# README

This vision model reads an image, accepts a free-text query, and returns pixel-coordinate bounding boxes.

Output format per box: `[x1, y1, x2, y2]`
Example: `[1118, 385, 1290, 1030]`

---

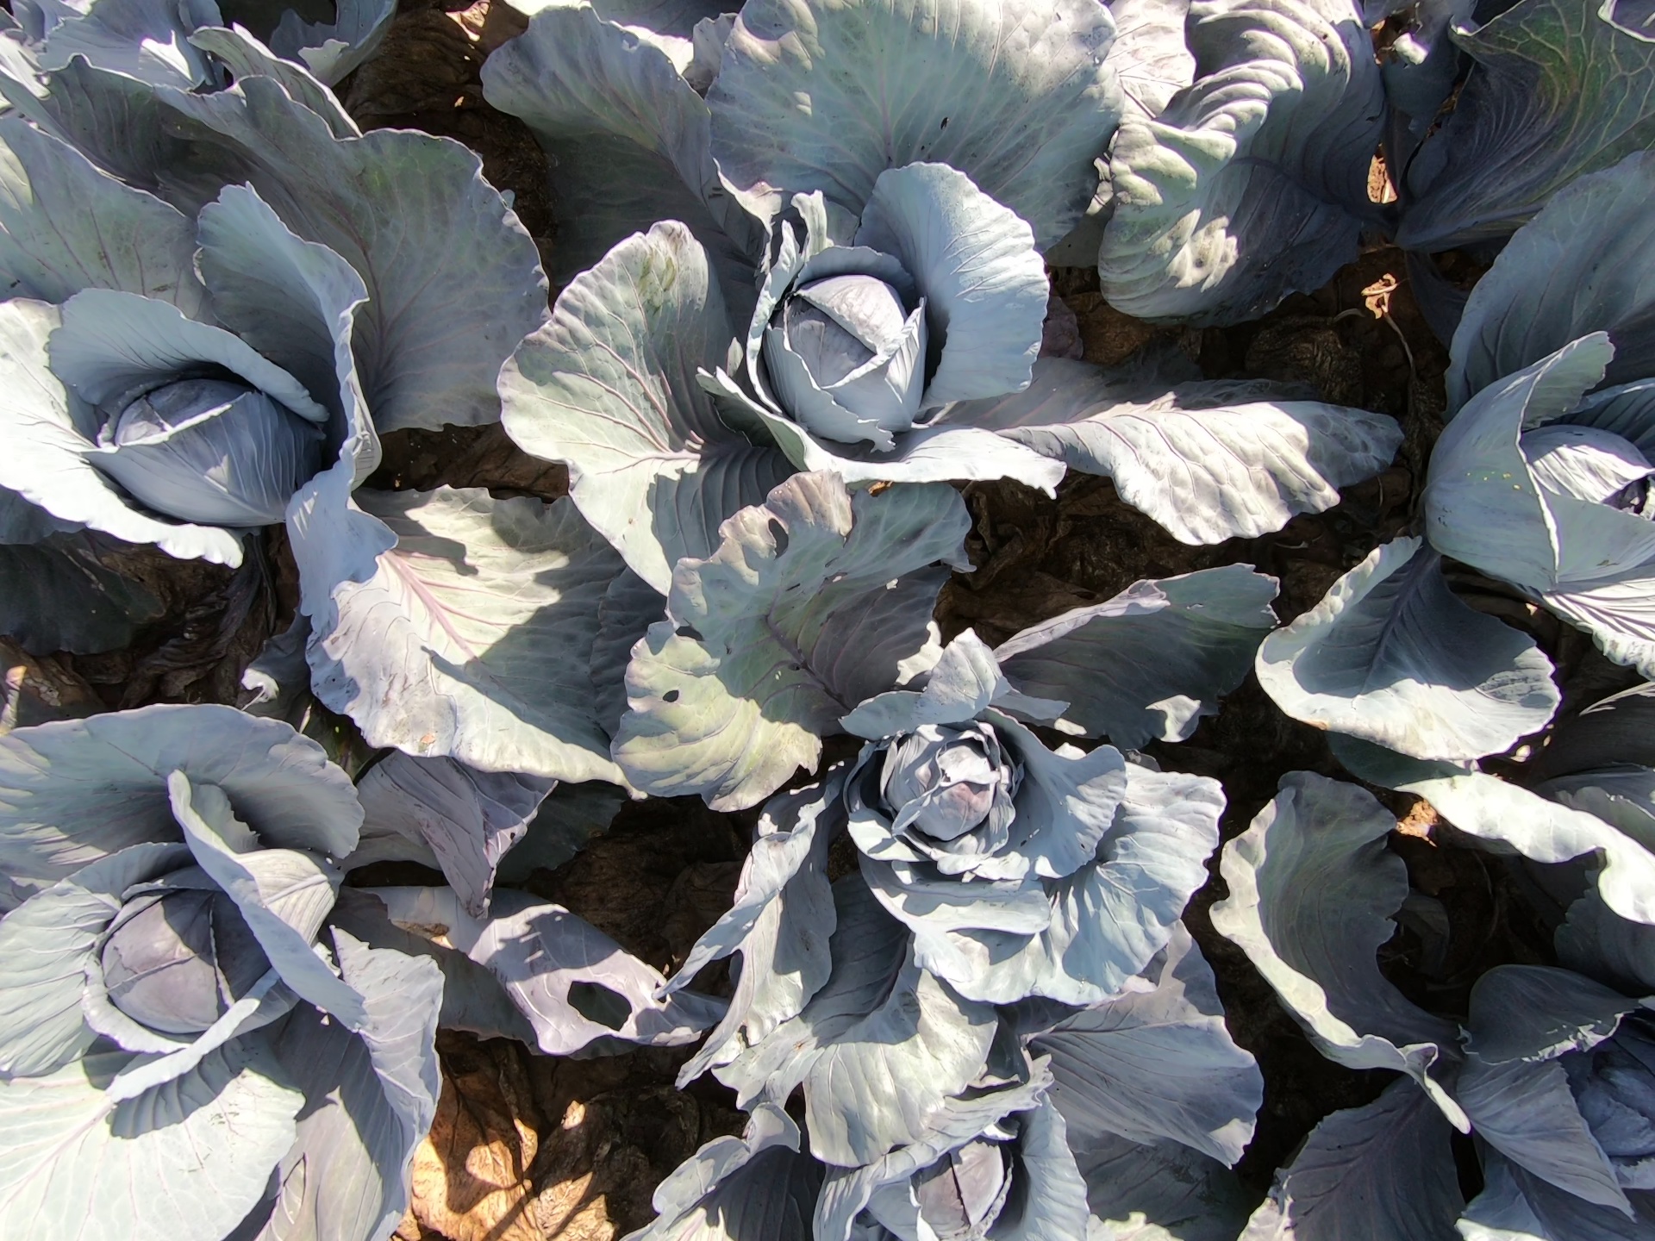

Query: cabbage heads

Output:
[98, 871, 302, 1033]
[866, 1084, 1006, 1234]
[116, 372, 297, 523]
[45, 4, 185, 87]
[781, 272, 921, 428]
[1487, 424, 1651, 570]
[1488, 1001, 1649, 1188]
[886, 736, 996, 844]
